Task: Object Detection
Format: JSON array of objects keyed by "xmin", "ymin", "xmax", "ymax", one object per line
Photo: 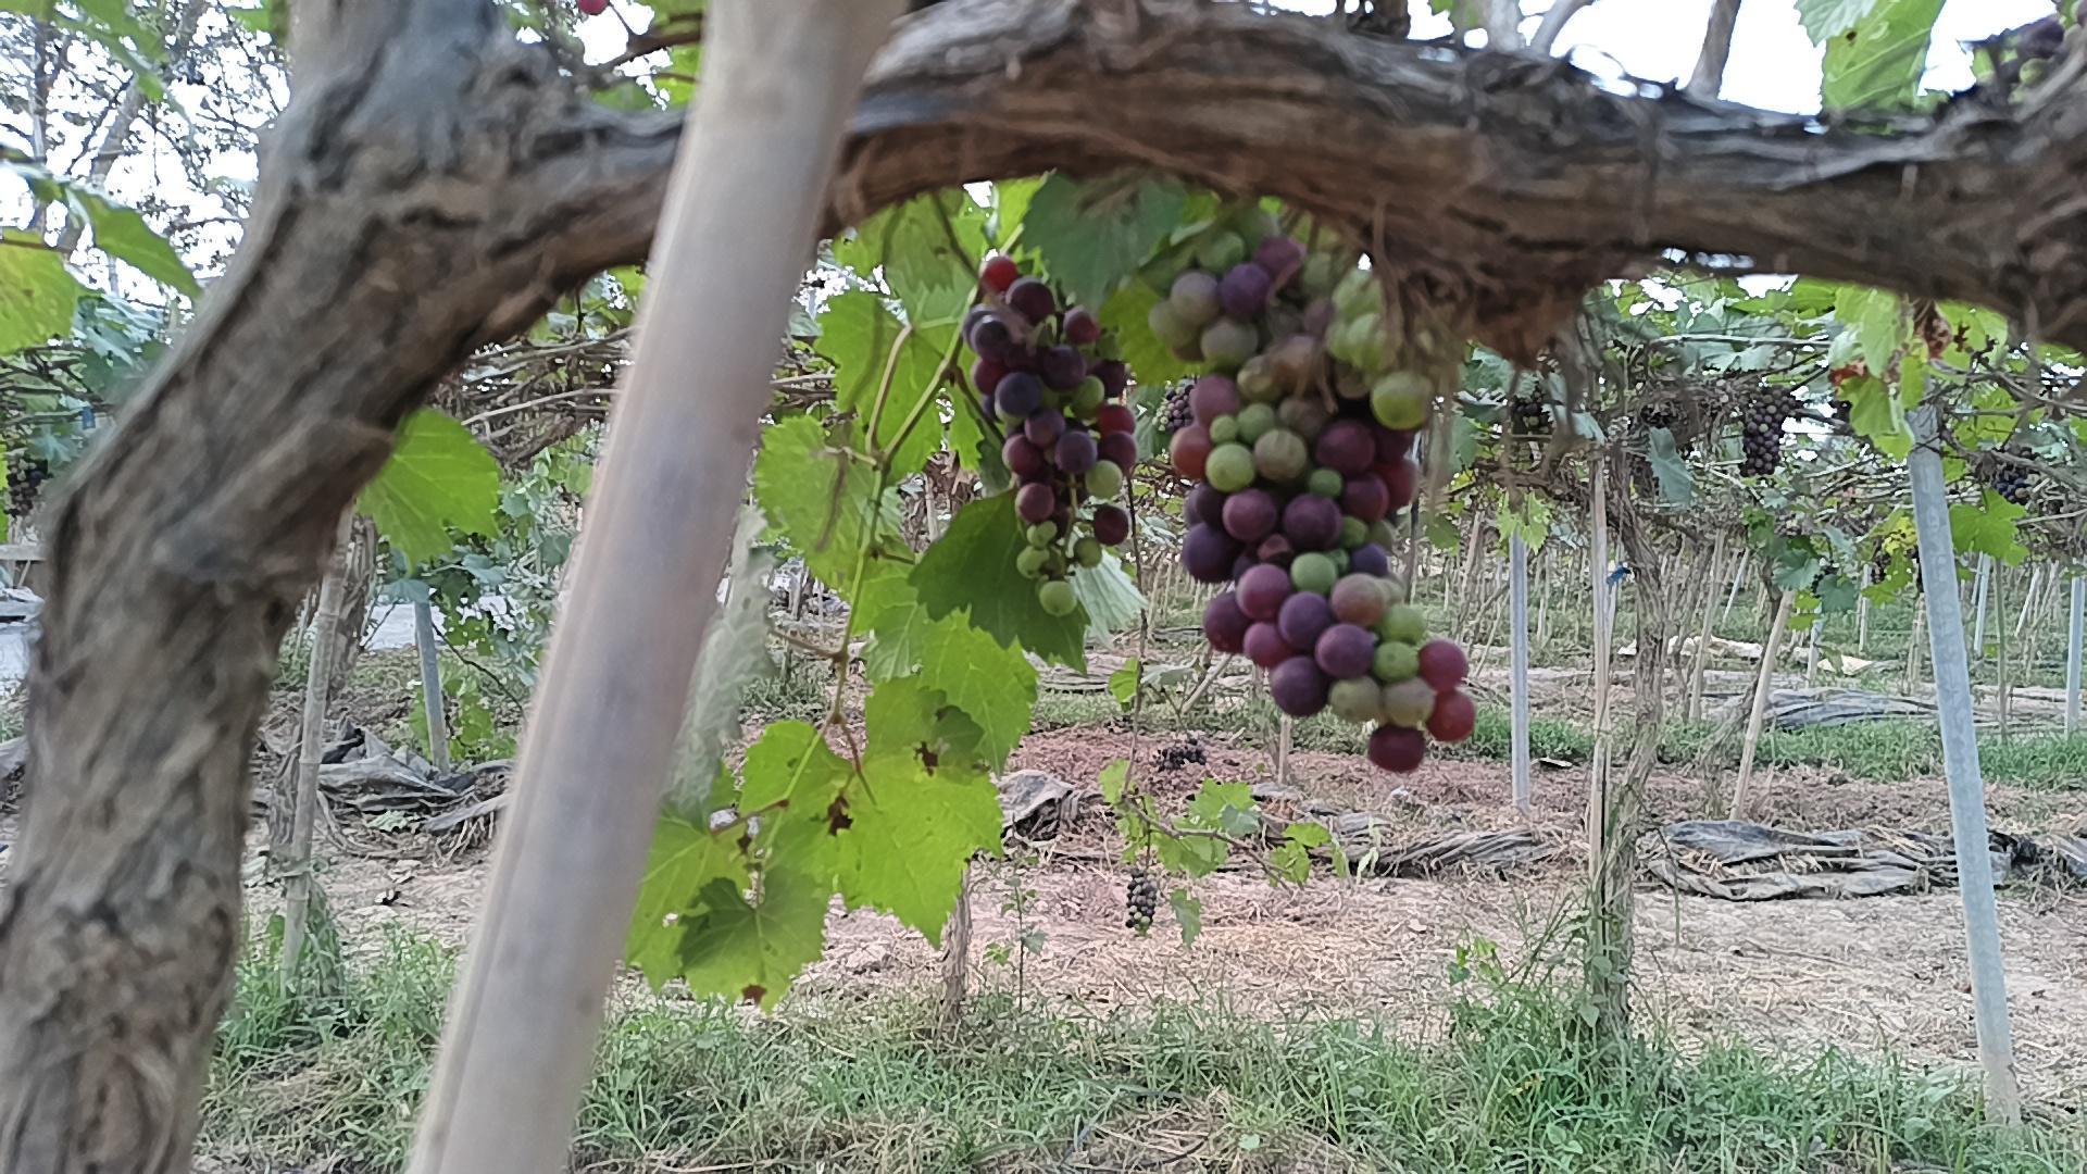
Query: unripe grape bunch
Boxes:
[{"xmin": 1154, "ymin": 737, "xmax": 1207, "ymax": 772}]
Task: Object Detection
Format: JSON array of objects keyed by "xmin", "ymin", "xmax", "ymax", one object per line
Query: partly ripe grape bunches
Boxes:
[
  {"xmin": 1739, "ymin": 383, "xmax": 1801, "ymax": 476},
  {"xmin": 1142, "ymin": 203, "xmax": 1474, "ymax": 772},
  {"xmin": 1969, "ymin": 438, "xmax": 2041, "ymax": 505},
  {"xmin": 10, "ymin": 457, "xmax": 51, "ymax": 515},
  {"xmin": 962, "ymin": 257, "xmax": 1135, "ymax": 616},
  {"xmin": 1126, "ymin": 872, "xmax": 1158, "ymax": 933},
  {"xmin": 1159, "ymin": 379, "xmax": 1194, "ymax": 437},
  {"xmin": 1510, "ymin": 386, "xmax": 1548, "ymax": 434}
]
